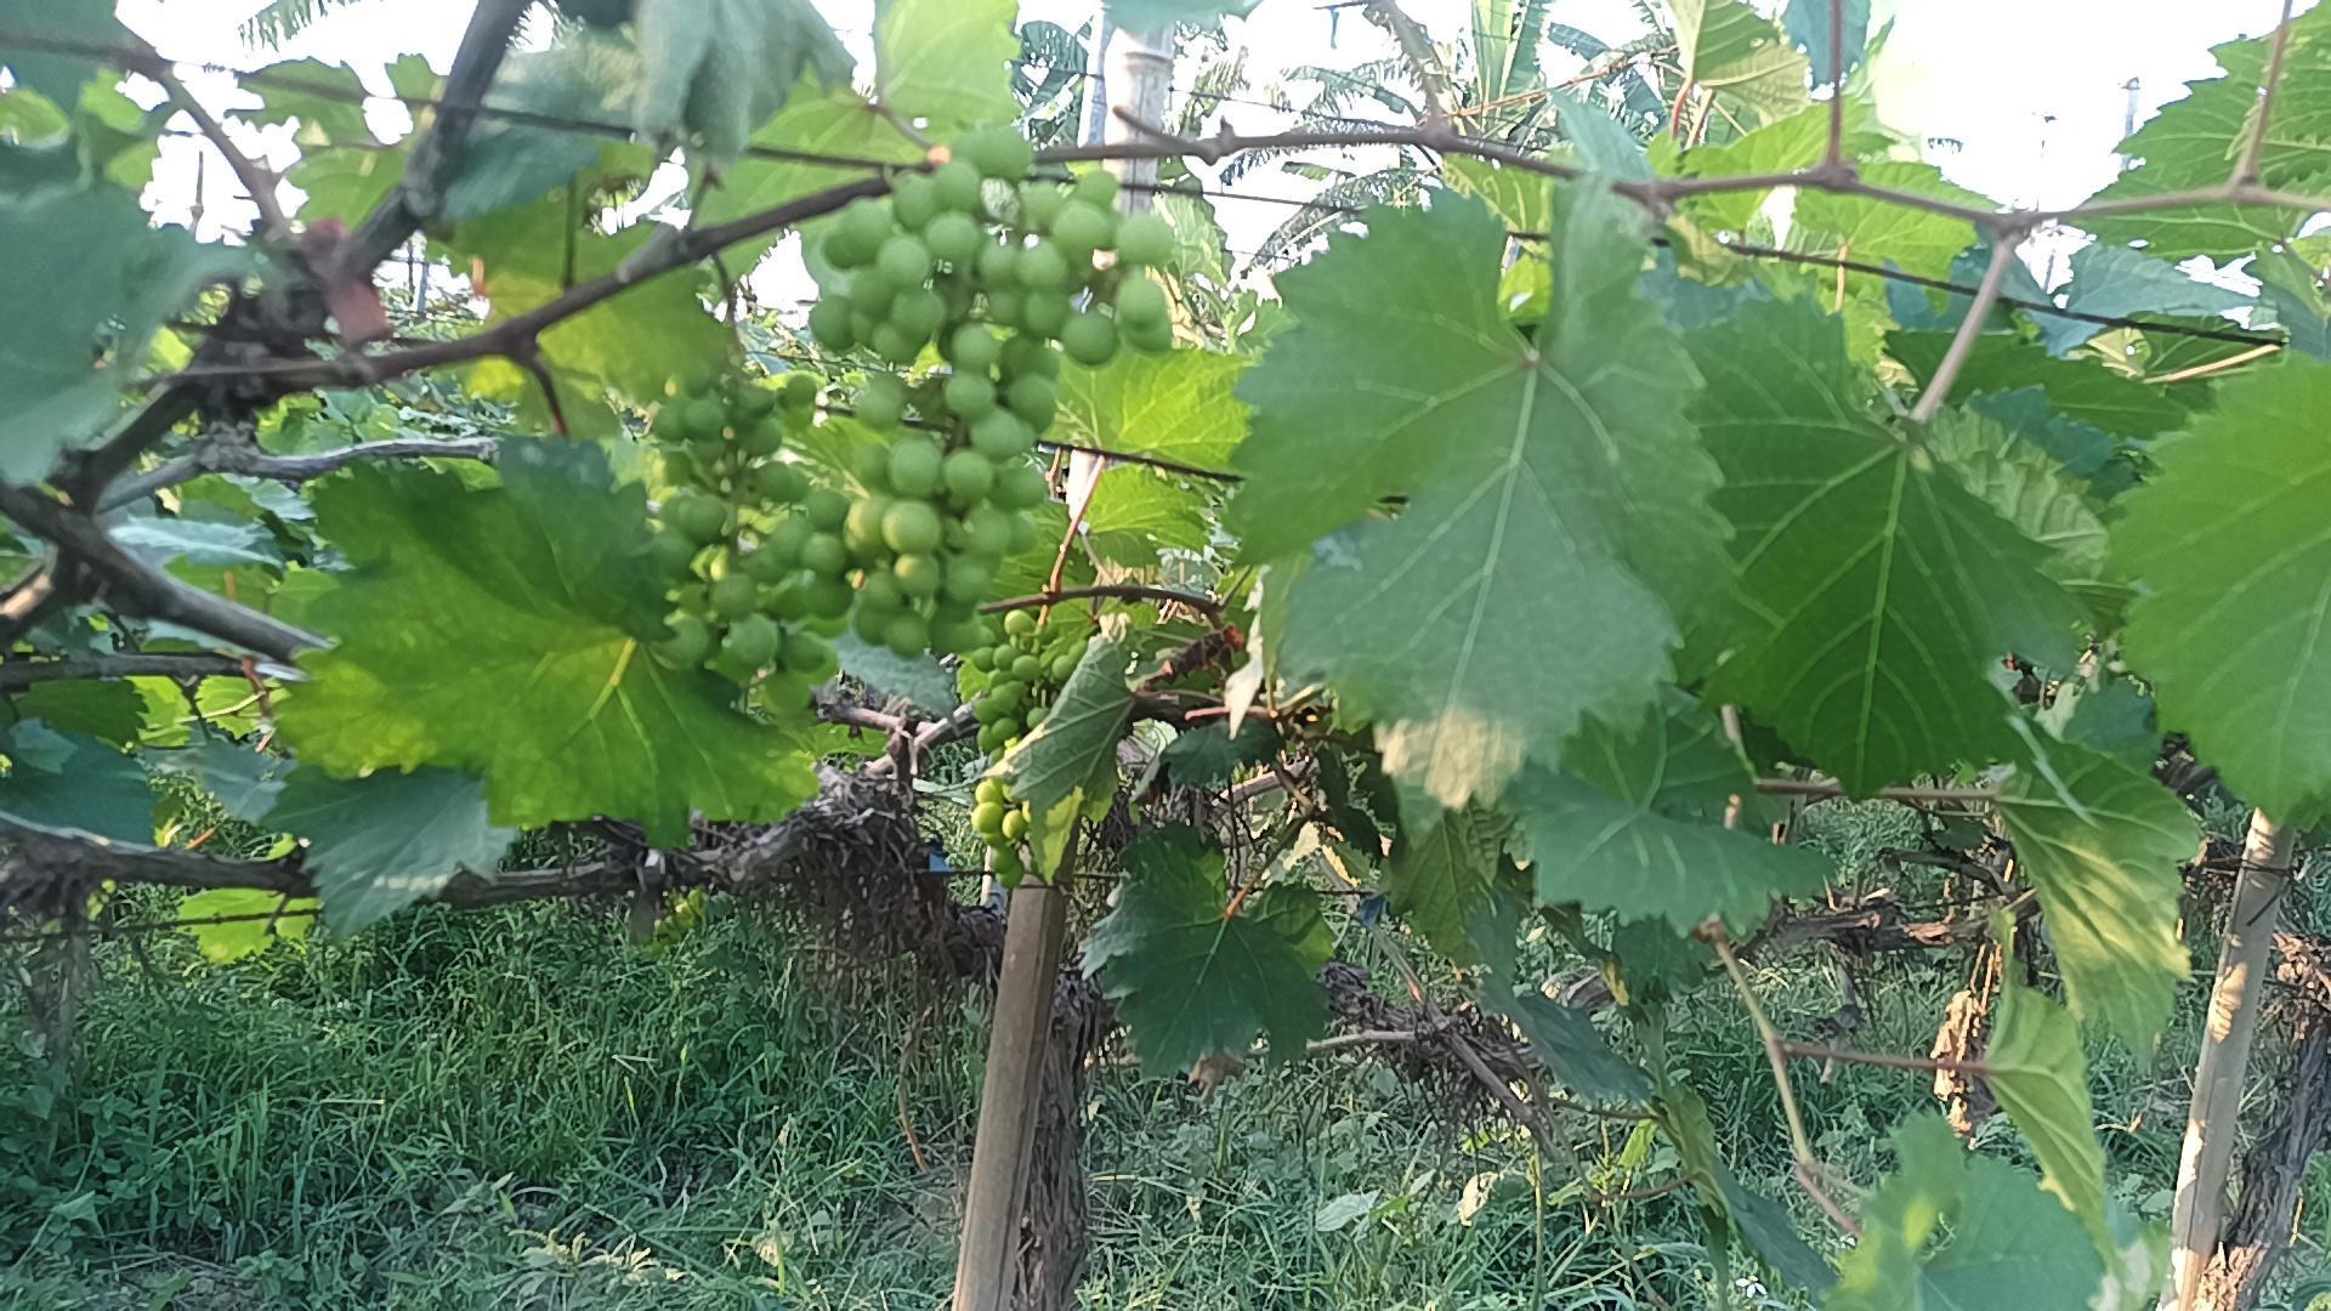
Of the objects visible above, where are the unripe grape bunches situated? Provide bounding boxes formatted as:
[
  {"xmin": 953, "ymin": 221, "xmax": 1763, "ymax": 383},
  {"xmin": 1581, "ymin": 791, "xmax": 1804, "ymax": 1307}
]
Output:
[
  {"xmin": 652, "ymin": 369, "xmax": 852, "ymax": 714},
  {"xmin": 959, "ymin": 611, "xmax": 1085, "ymax": 887},
  {"xmin": 810, "ymin": 127, "xmax": 1176, "ymax": 660}
]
